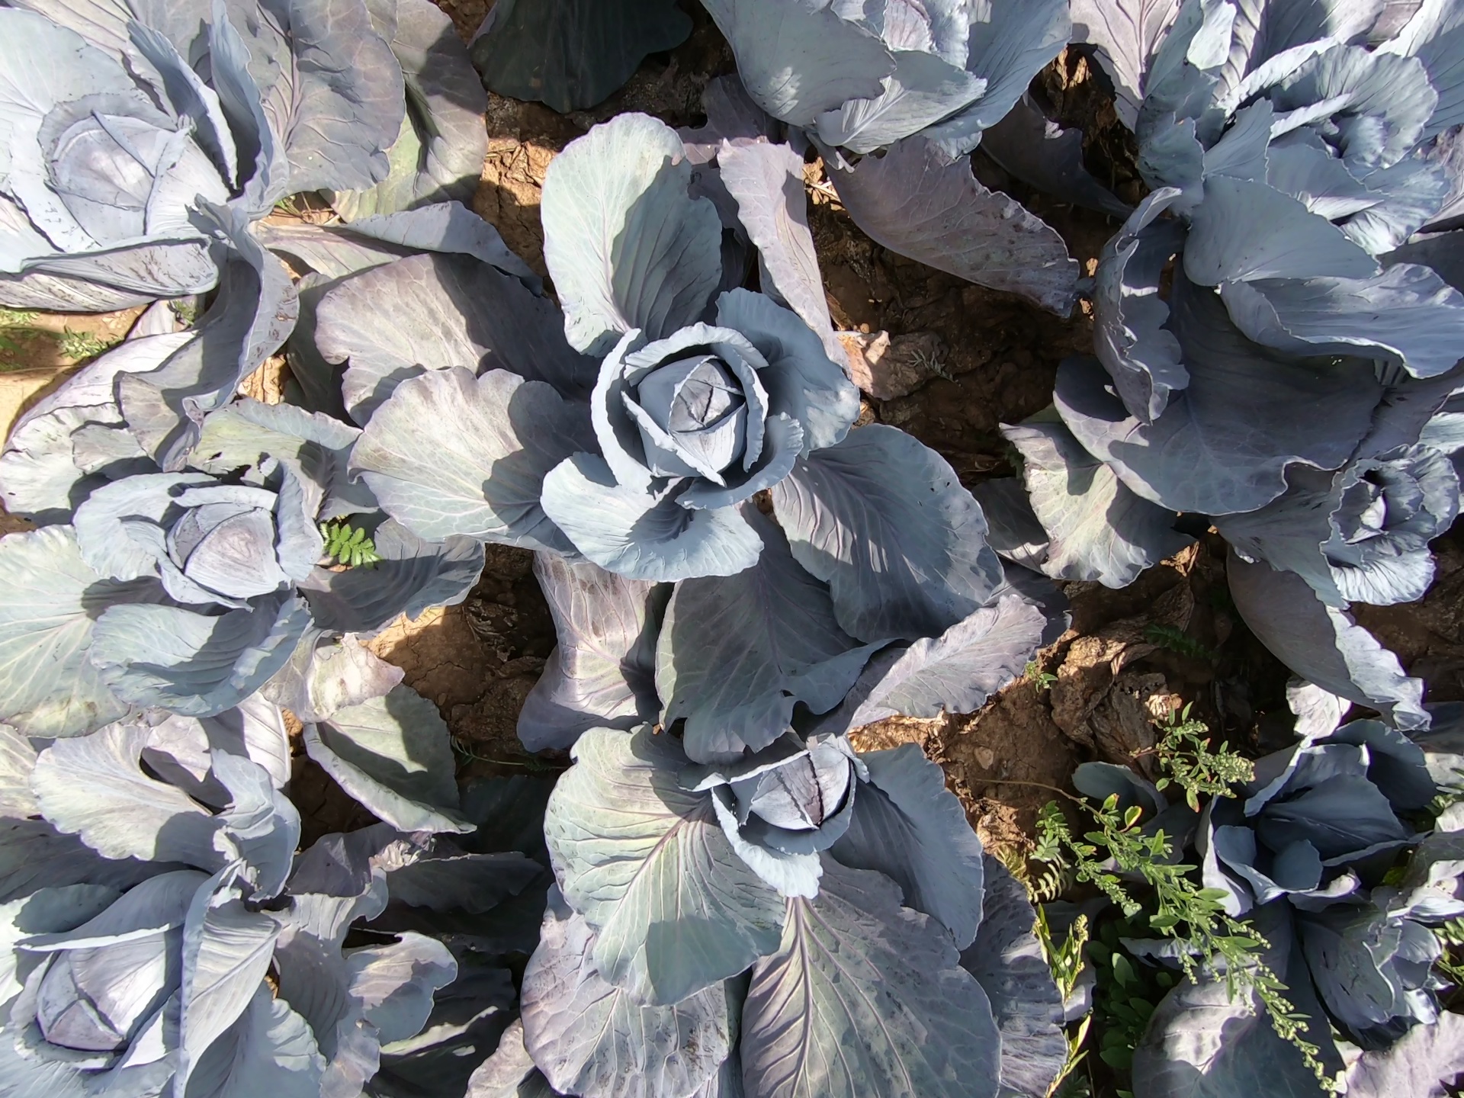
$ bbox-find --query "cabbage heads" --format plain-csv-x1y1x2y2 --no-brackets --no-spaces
166,498,295,599
53,114,222,263
642,356,748,476
1316,477,1387,547
1221,130,1350,260
733,724,856,831
810,2,937,127
33,885,259,1063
